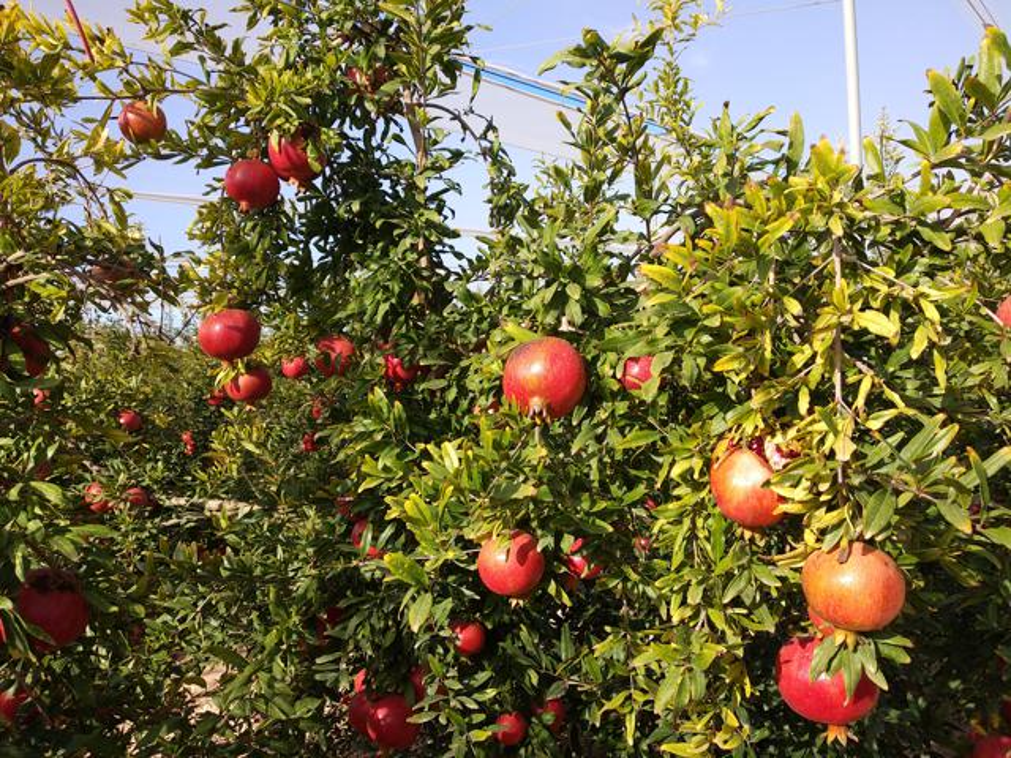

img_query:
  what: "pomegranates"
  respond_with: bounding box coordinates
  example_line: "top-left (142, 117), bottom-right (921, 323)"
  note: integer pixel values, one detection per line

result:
top-left (351, 516), bottom-right (384, 559)
top-left (618, 354), bottom-right (654, 392)
top-left (117, 98), bottom-right (166, 145)
top-left (502, 335), bottom-right (588, 426)
top-left (314, 335), bottom-right (357, 377)
top-left (197, 308), bottom-right (261, 368)
top-left (13, 567), bottom-right (92, 655)
top-left (564, 535), bottom-right (605, 592)
top-left (408, 665), bottom-right (447, 703)
top-left (212, 382), bottom-right (231, 401)
top-left (224, 366), bottom-right (273, 411)
top-left (449, 619), bottom-right (490, 659)
top-left (346, 66), bottom-right (387, 93)
top-left (379, 343), bottom-right (420, 395)
top-left (532, 700), bottom-right (567, 733)
top-left (774, 636), bottom-right (880, 749)
top-left (493, 711), bottom-right (529, 747)
top-left (115, 409), bottom-right (144, 431)
top-left (280, 355), bottom-right (311, 379)
top-left (182, 431), bottom-right (196, 447)
top-left (801, 540), bottom-right (907, 652)
top-left (477, 529), bottom-right (547, 611)
top-left (267, 136), bottom-right (321, 193)
top-left (349, 689), bottom-right (371, 736)
top-left (352, 666), bottom-right (368, 695)
top-left (995, 295), bottom-right (1011, 327)
top-left (125, 486), bottom-right (155, 508)
top-left (32, 385), bottom-right (52, 411)
top-left (709, 437), bottom-right (787, 529)
top-left (965, 731), bottom-right (1011, 758)
top-left (84, 482), bottom-right (114, 516)
top-left (6, 319), bottom-right (51, 379)
top-left (207, 396), bottom-right (224, 406)
top-left (185, 442), bottom-right (197, 456)
top-left (0, 687), bottom-right (44, 725)
top-left (365, 693), bottom-right (420, 758)
top-left (224, 156), bottom-right (281, 215)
